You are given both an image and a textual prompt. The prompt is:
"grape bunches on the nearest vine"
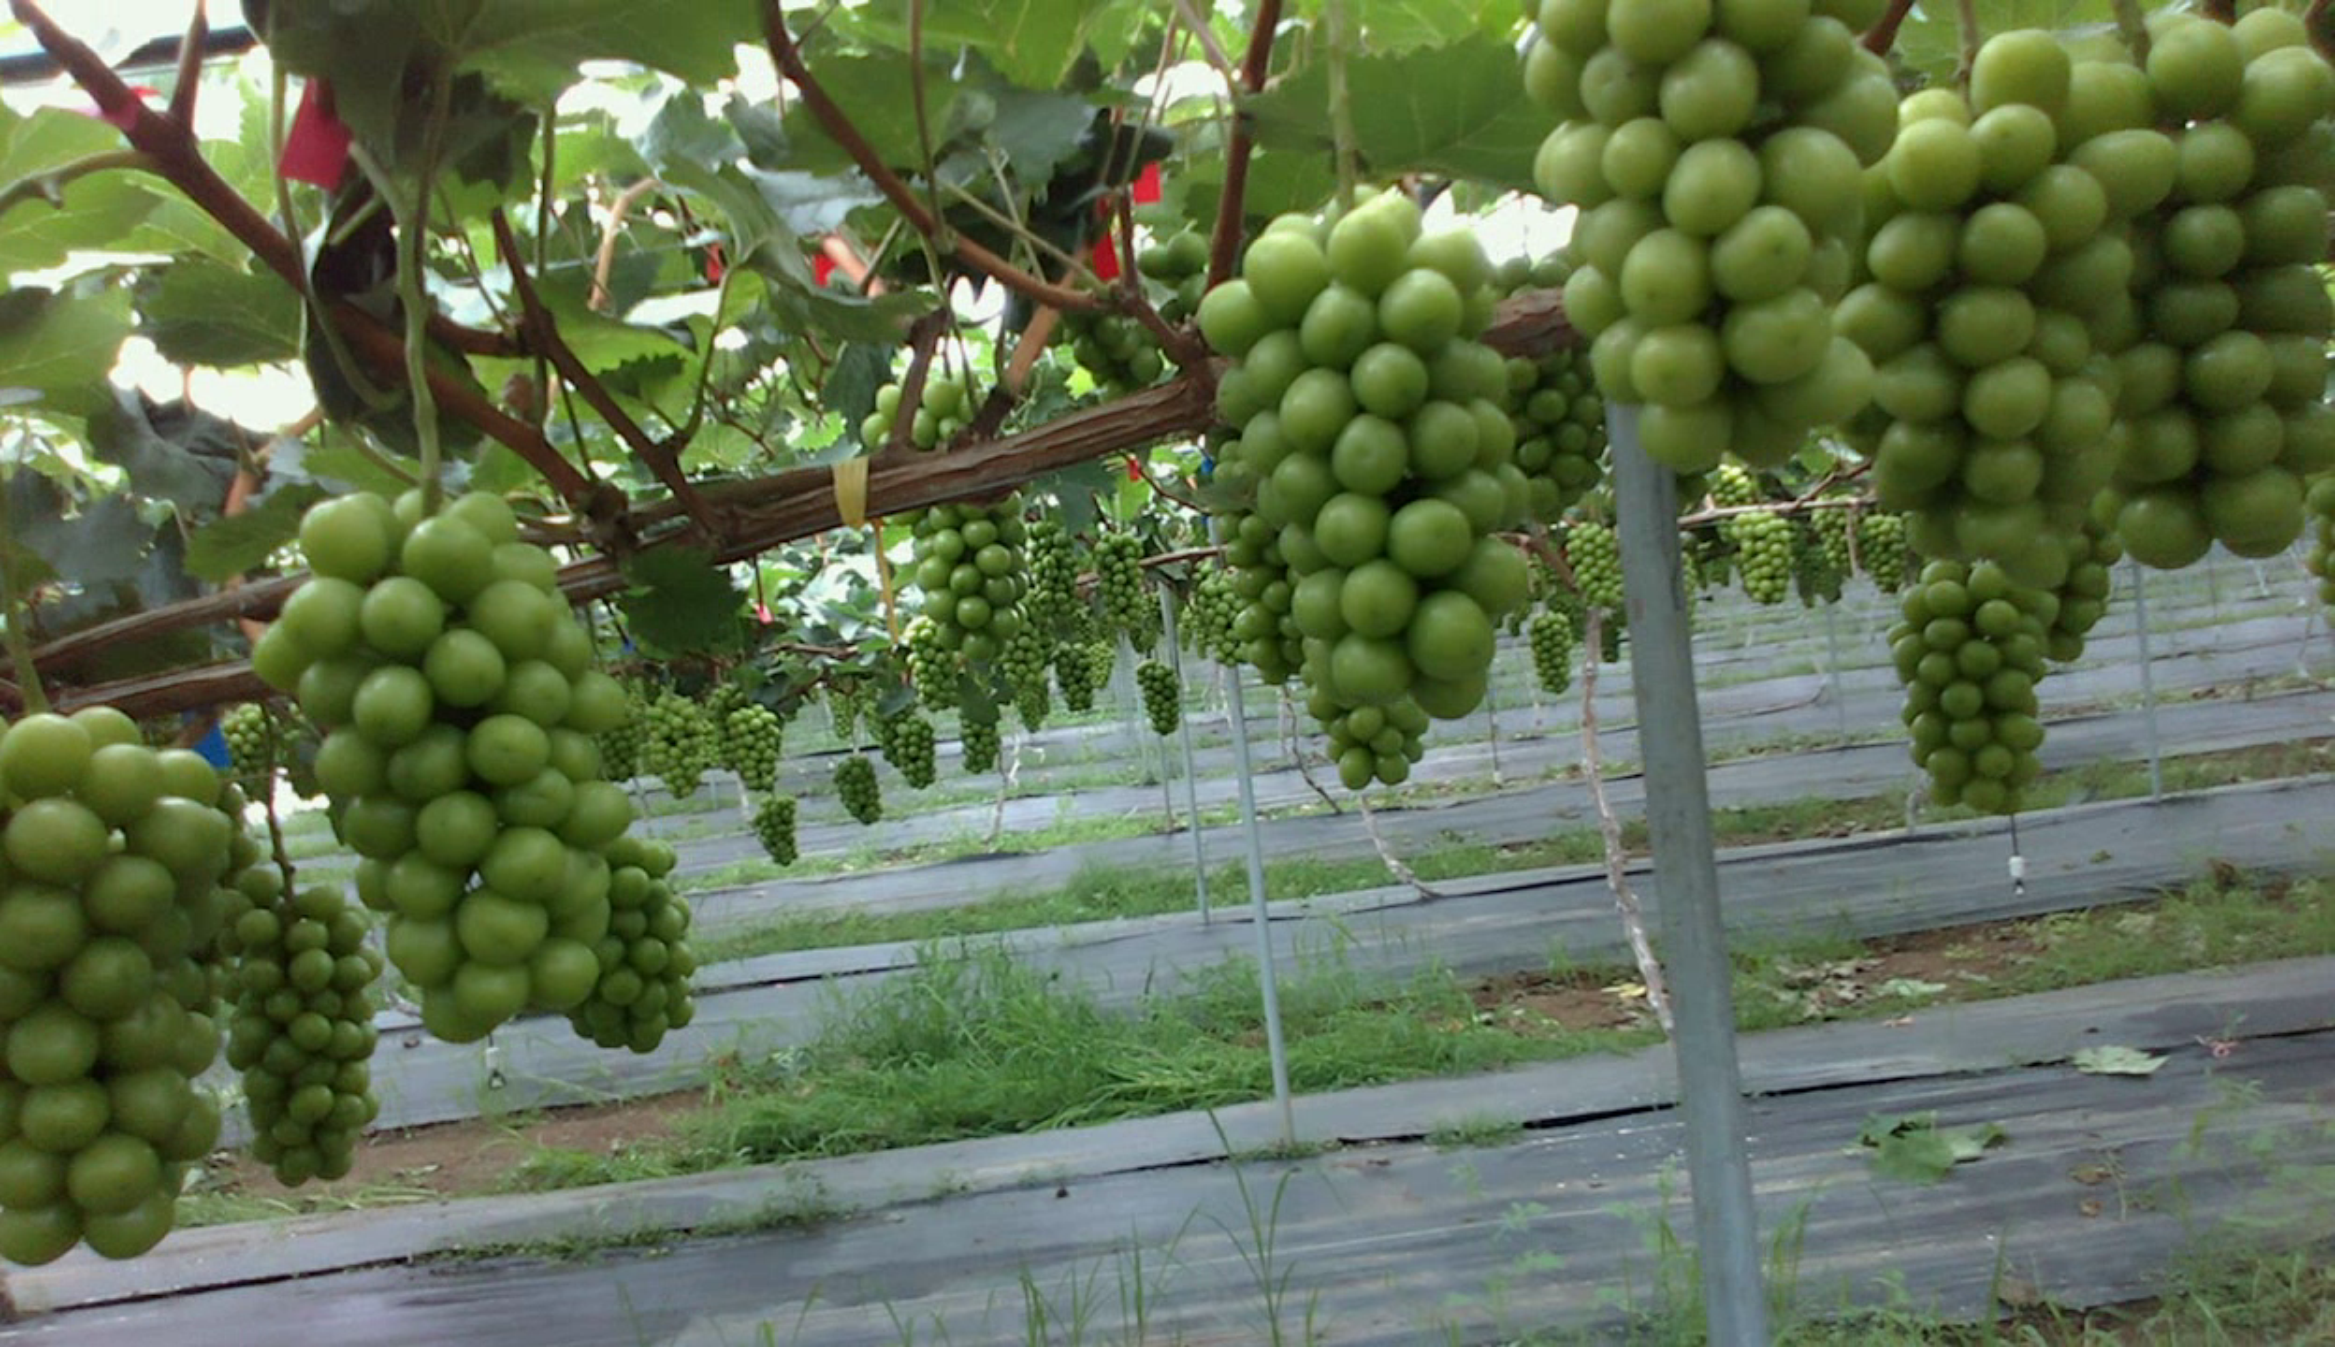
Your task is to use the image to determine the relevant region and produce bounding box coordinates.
[0,707,232,1265]
[2103,7,2333,571]
[1519,0,1901,477]
[1835,26,2174,586]
[253,490,634,1044]
[1194,183,1530,722]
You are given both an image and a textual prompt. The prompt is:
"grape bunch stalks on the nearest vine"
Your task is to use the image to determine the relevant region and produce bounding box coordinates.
[1959,0,1976,94]
[350,142,442,514]
[1330,2,1353,206]
[6,610,47,711]
[2114,0,2150,64]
